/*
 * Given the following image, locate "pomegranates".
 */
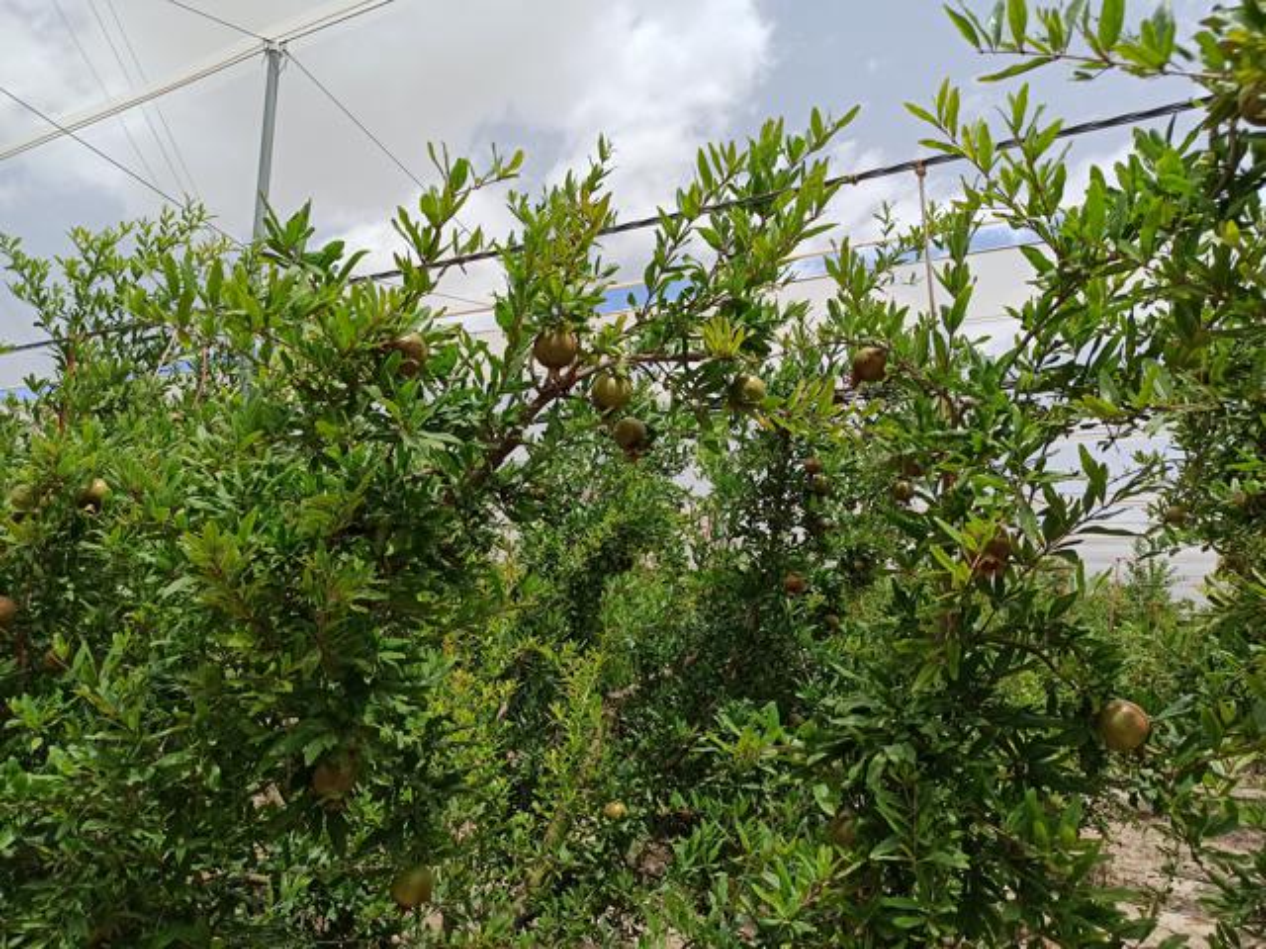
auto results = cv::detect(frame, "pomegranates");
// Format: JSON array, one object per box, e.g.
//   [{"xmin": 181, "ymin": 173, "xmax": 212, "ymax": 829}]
[
  {"xmin": 732, "ymin": 374, "xmax": 766, "ymax": 409},
  {"xmin": 0, "ymin": 595, "xmax": 16, "ymax": 621},
  {"xmin": 591, "ymin": 372, "xmax": 635, "ymax": 411},
  {"xmin": 831, "ymin": 815, "xmax": 855, "ymax": 844},
  {"xmin": 534, "ymin": 332, "xmax": 578, "ymax": 389},
  {"xmin": 10, "ymin": 484, "xmax": 32, "ymax": 512},
  {"xmin": 315, "ymin": 757, "xmax": 356, "ymax": 793},
  {"xmin": 75, "ymin": 476, "xmax": 111, "ymax": 514},
  {"xmin": 849, "ymin": 344, "xmax": 888, "ymax": 391},
  {"xmin": 392, "ymin": 868, "xmax": 431, "ymax": 915},
  {"xmin": 603, "ymin": 801, "xmax": 627, "ymax": 820},
  {"xmin": 1240, "ymin": 79, "xmax": 1266, "ymax": 127},
  {"xmin": 390, "ymin": 330, "xmax": 427, "ymax": 376},
  {"xmin": 1165, "ymin": 504, "xmax": 1189, "ymax": 524},
  {"xmin": 803, "ymin": 455, "xmax": 821, "ymax": 474},
  {"xmin": 894, "ymin": 480, "xmax": 916, "ymax": 508},
  {"xmin": 1098, "ymin": 698, "xmax": 1151, "ymax": 749},
  {"xmin": 963, "ymin": 528, "xmax": 1011, "ymax": 575},
  {"xmin": 611, "ymin": 417, "xmax": 647, "ymax": 463},
  {"xmin": 783, "ymin": 573, "xmax": 805, "ymax": 595}
]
